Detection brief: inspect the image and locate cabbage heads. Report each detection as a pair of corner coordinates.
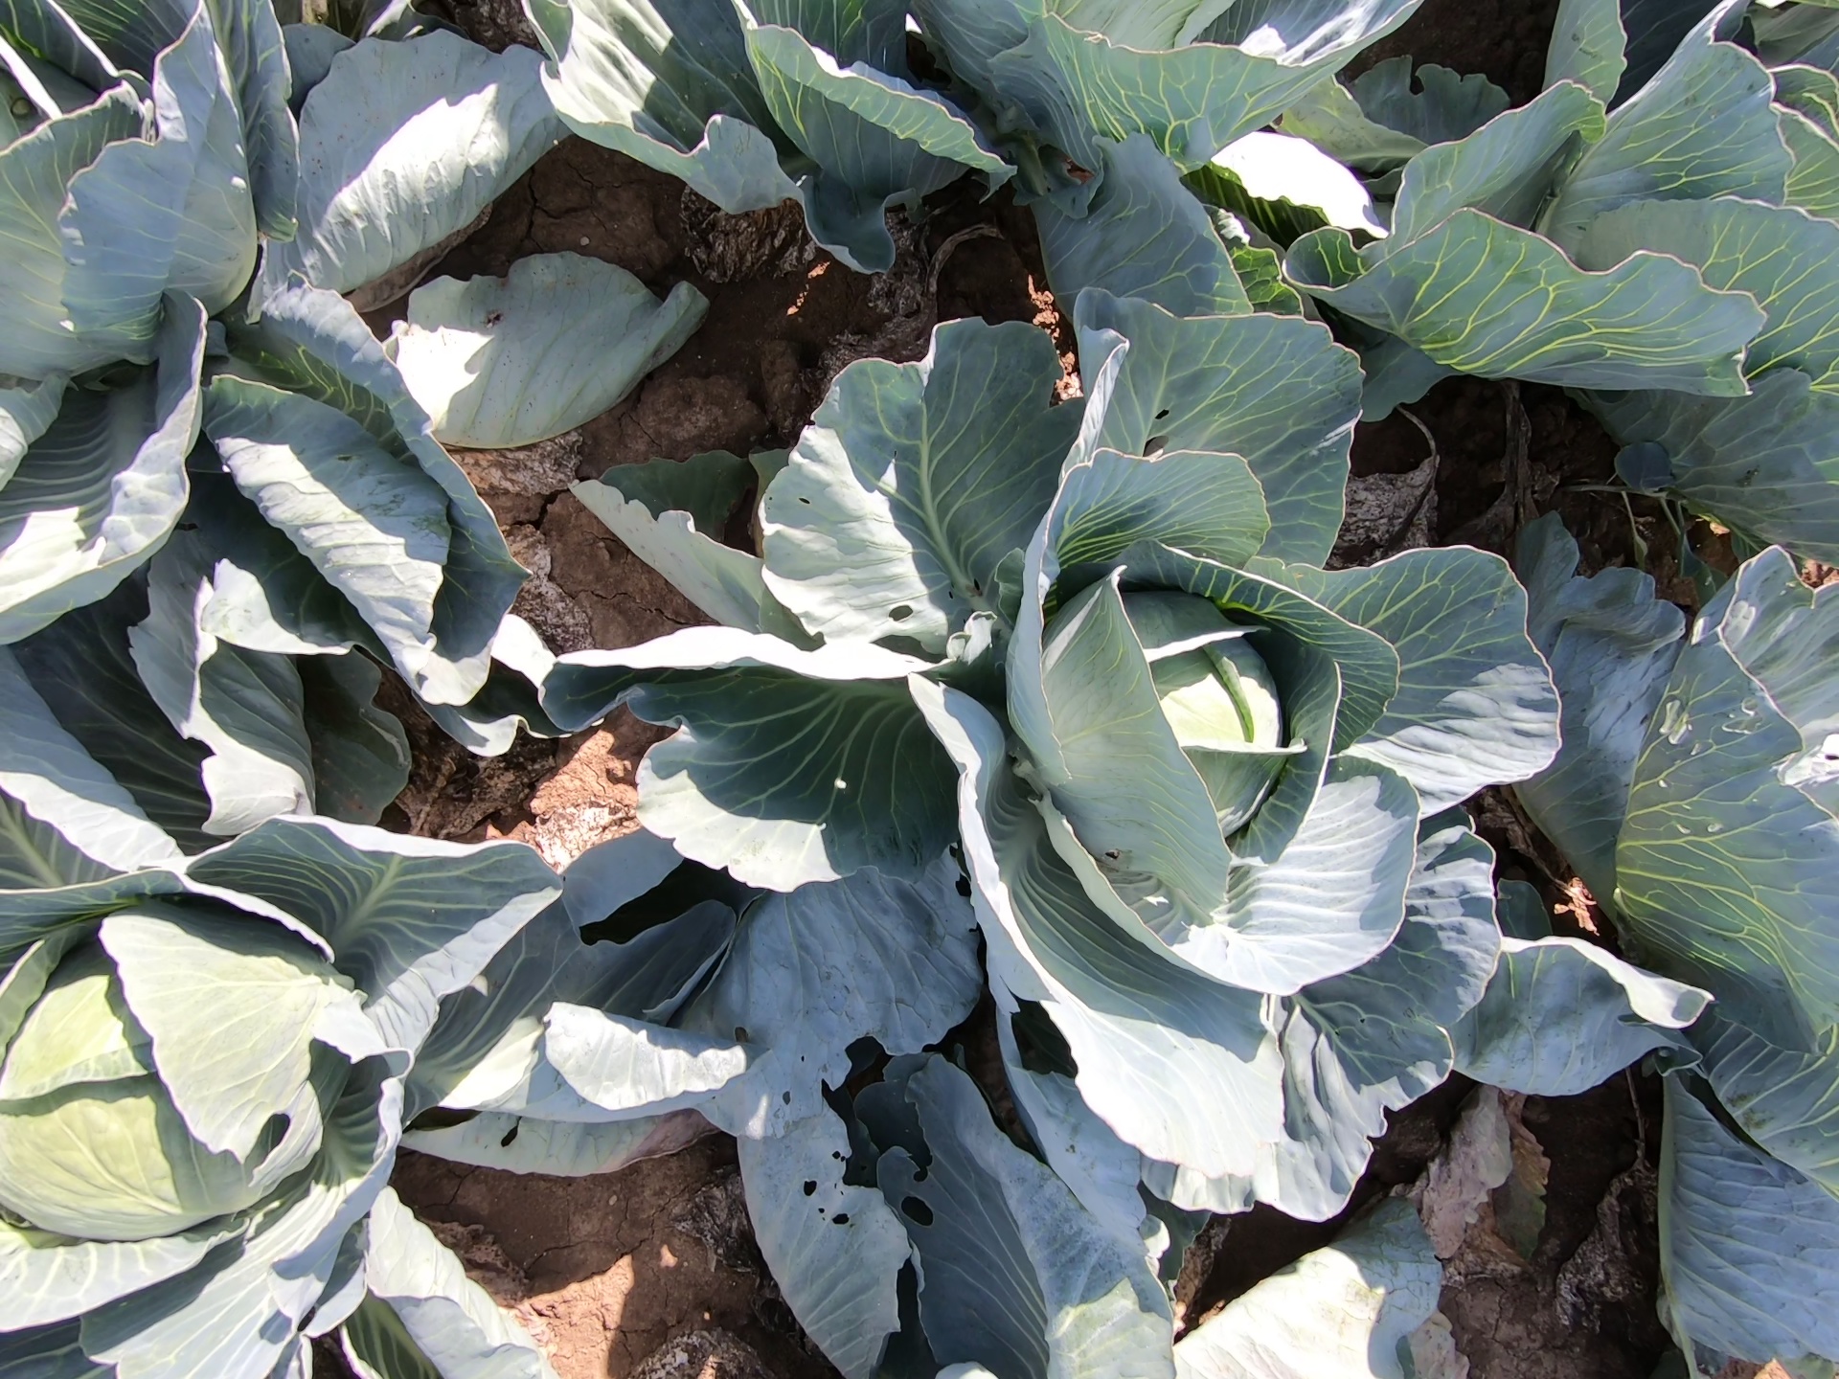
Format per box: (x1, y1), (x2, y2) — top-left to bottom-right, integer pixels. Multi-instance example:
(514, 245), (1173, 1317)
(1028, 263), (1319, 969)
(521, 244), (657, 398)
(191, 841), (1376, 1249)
(2, 67), (151, 364)
(0, 930), (319, 1236)
(1067, 604), (1282, 833)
